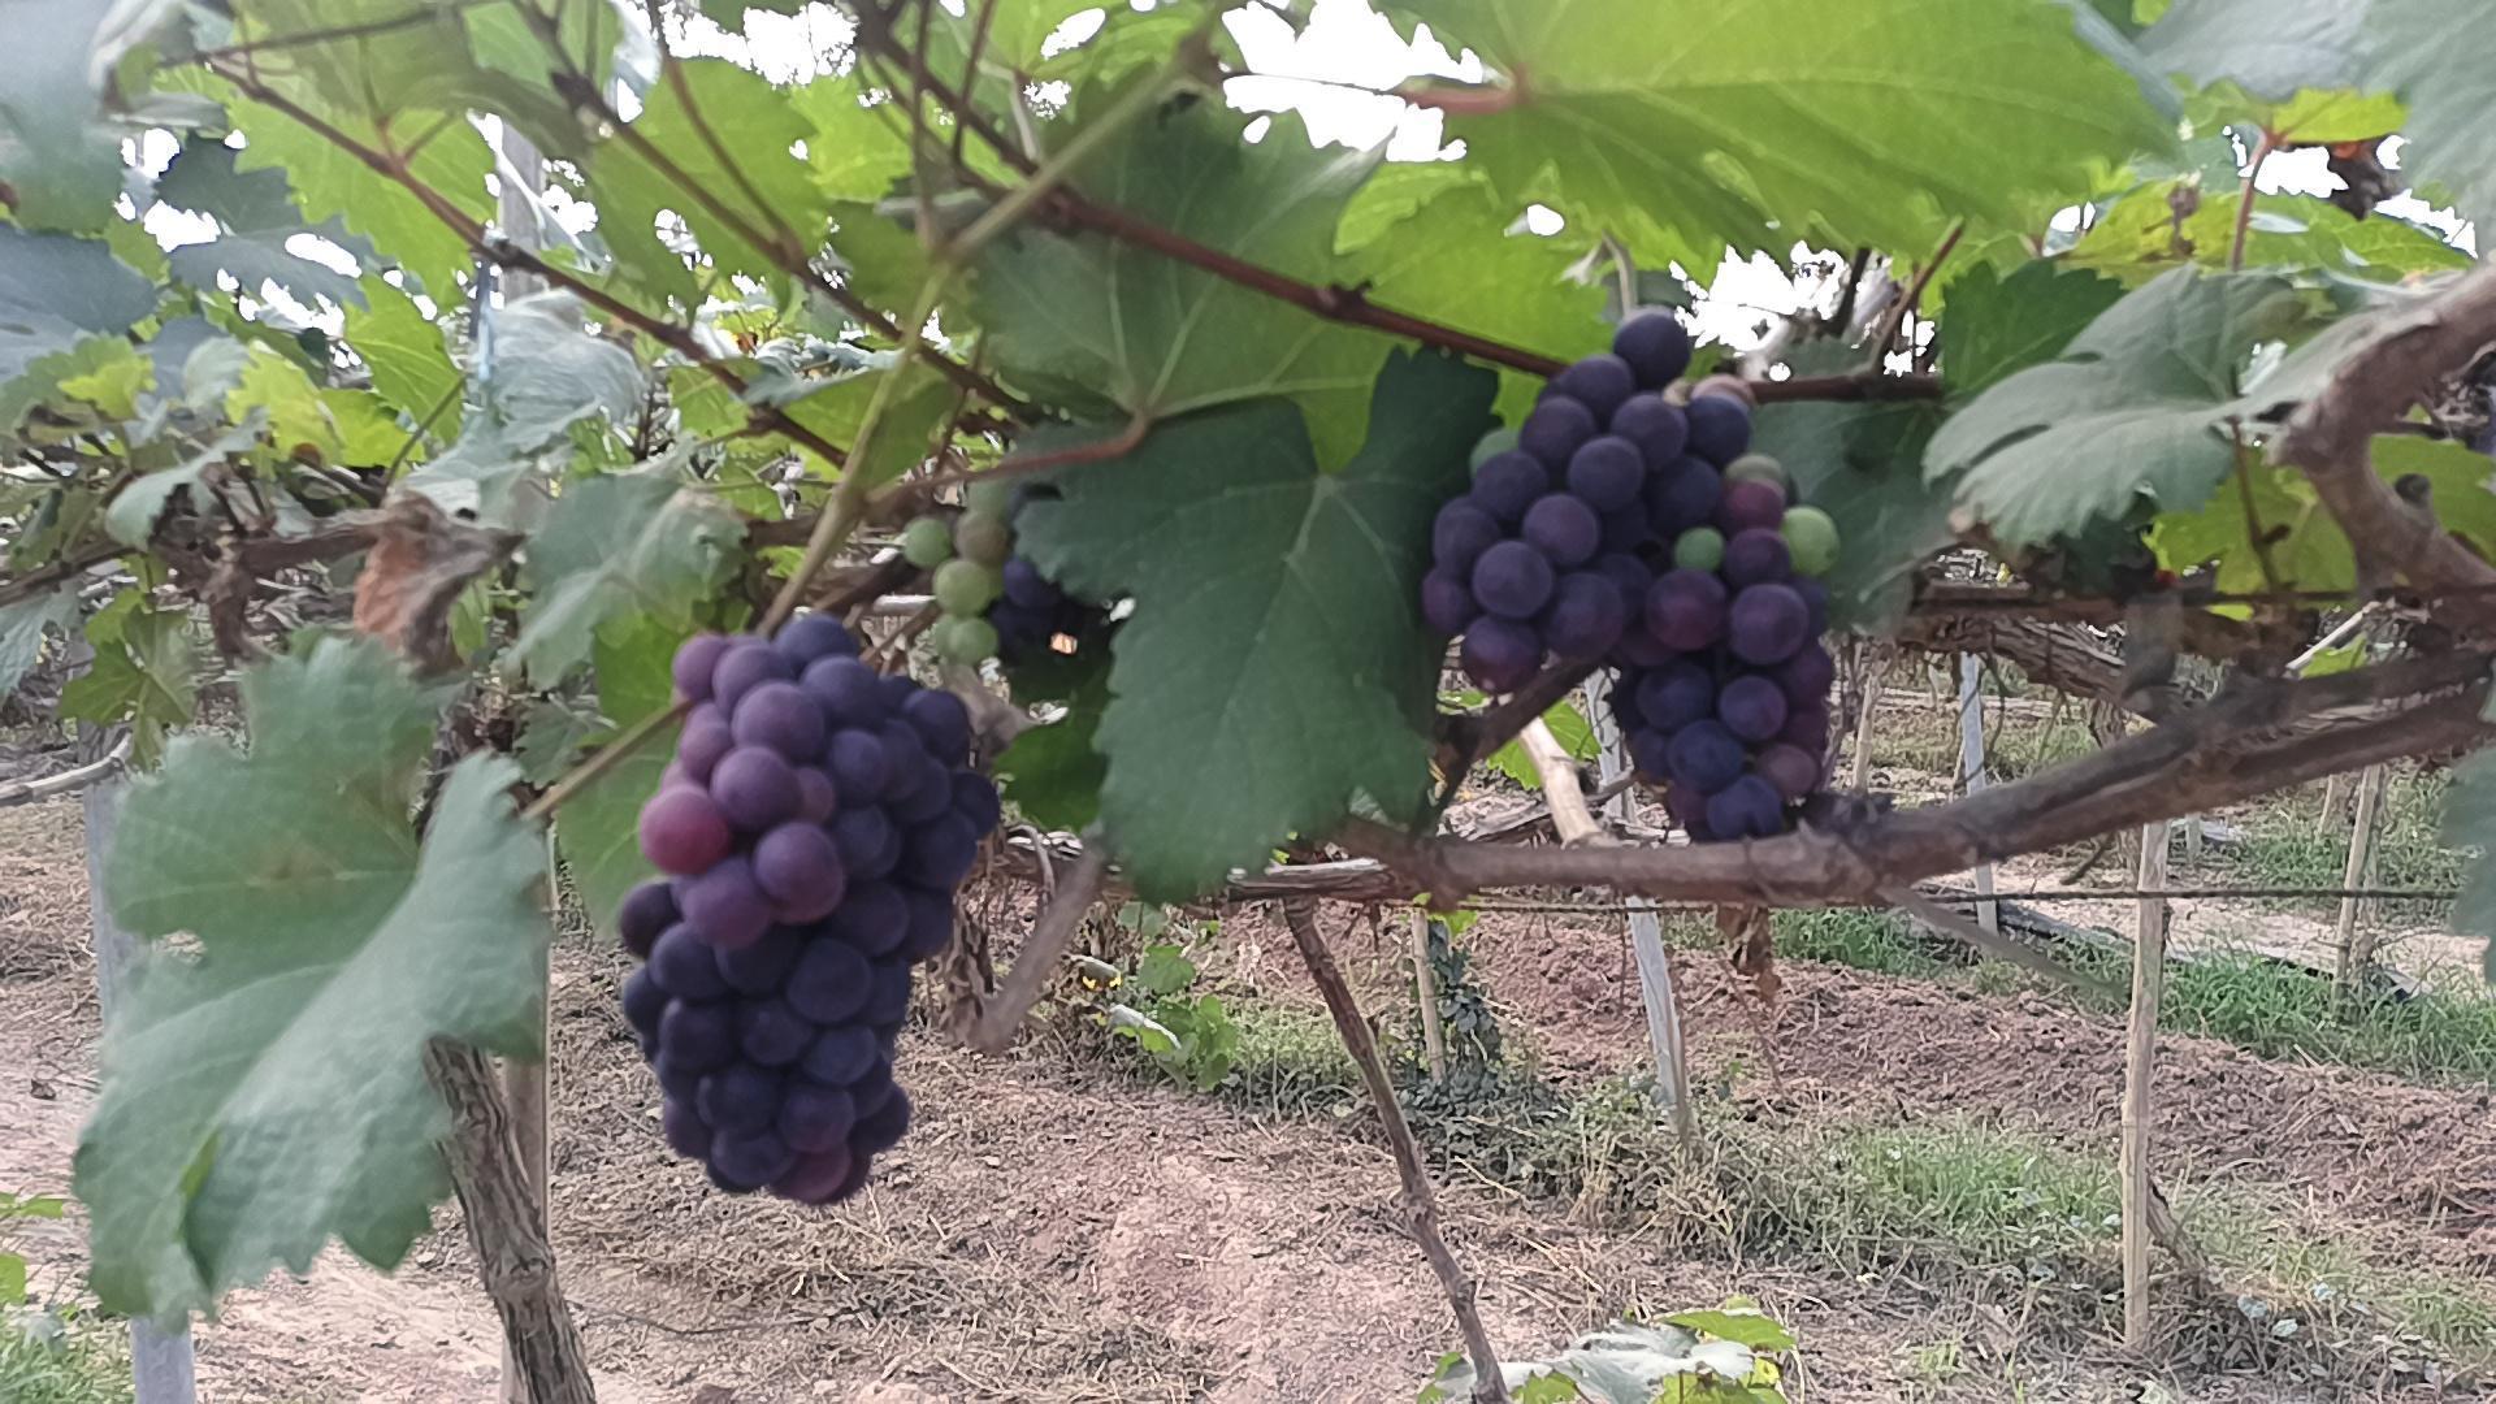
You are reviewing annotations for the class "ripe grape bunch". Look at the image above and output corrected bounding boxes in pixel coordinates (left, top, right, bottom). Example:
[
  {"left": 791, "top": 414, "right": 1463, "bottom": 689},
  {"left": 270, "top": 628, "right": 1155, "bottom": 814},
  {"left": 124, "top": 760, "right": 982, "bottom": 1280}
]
[{"left": 620, "top": 614, "right": 998, "bottom": 1202}]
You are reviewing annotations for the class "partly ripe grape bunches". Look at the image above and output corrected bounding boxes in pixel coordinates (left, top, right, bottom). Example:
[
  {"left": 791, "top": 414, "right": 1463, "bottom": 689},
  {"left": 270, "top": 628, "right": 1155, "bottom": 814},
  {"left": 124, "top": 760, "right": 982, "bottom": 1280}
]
[
  {"left": 1422, "top": 309, "right": 1837, "bottom": 841},
  {"left": 896, "top": 474, "right": 1087, "bottom": 668}
]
